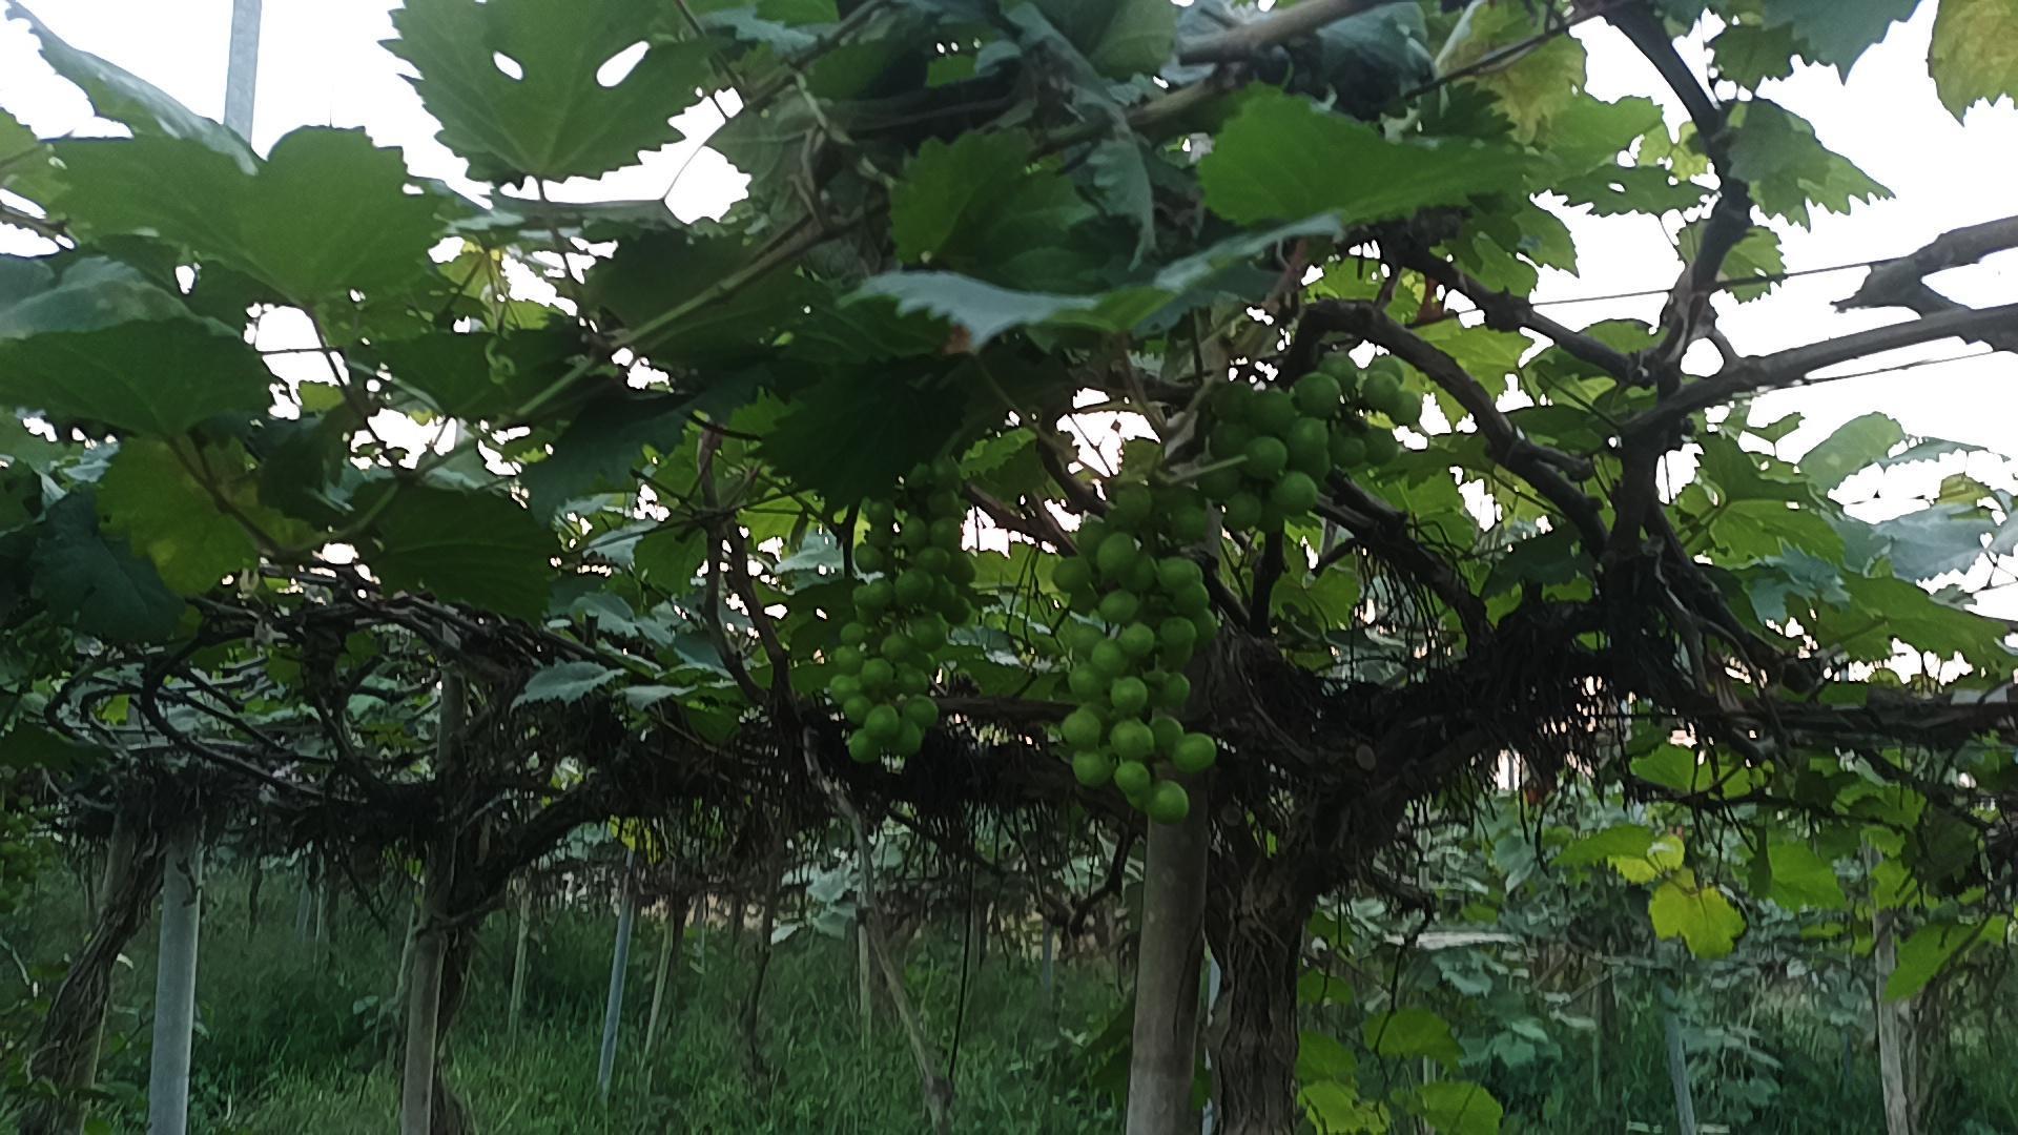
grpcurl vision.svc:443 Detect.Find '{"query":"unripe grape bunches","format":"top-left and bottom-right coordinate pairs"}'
top-left (827, 456), bottom-right (975, 762)
top-left (1053, 439), bottom-right (1214, 821)
top-left (1196, 353), bottom-right (1422, 531)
